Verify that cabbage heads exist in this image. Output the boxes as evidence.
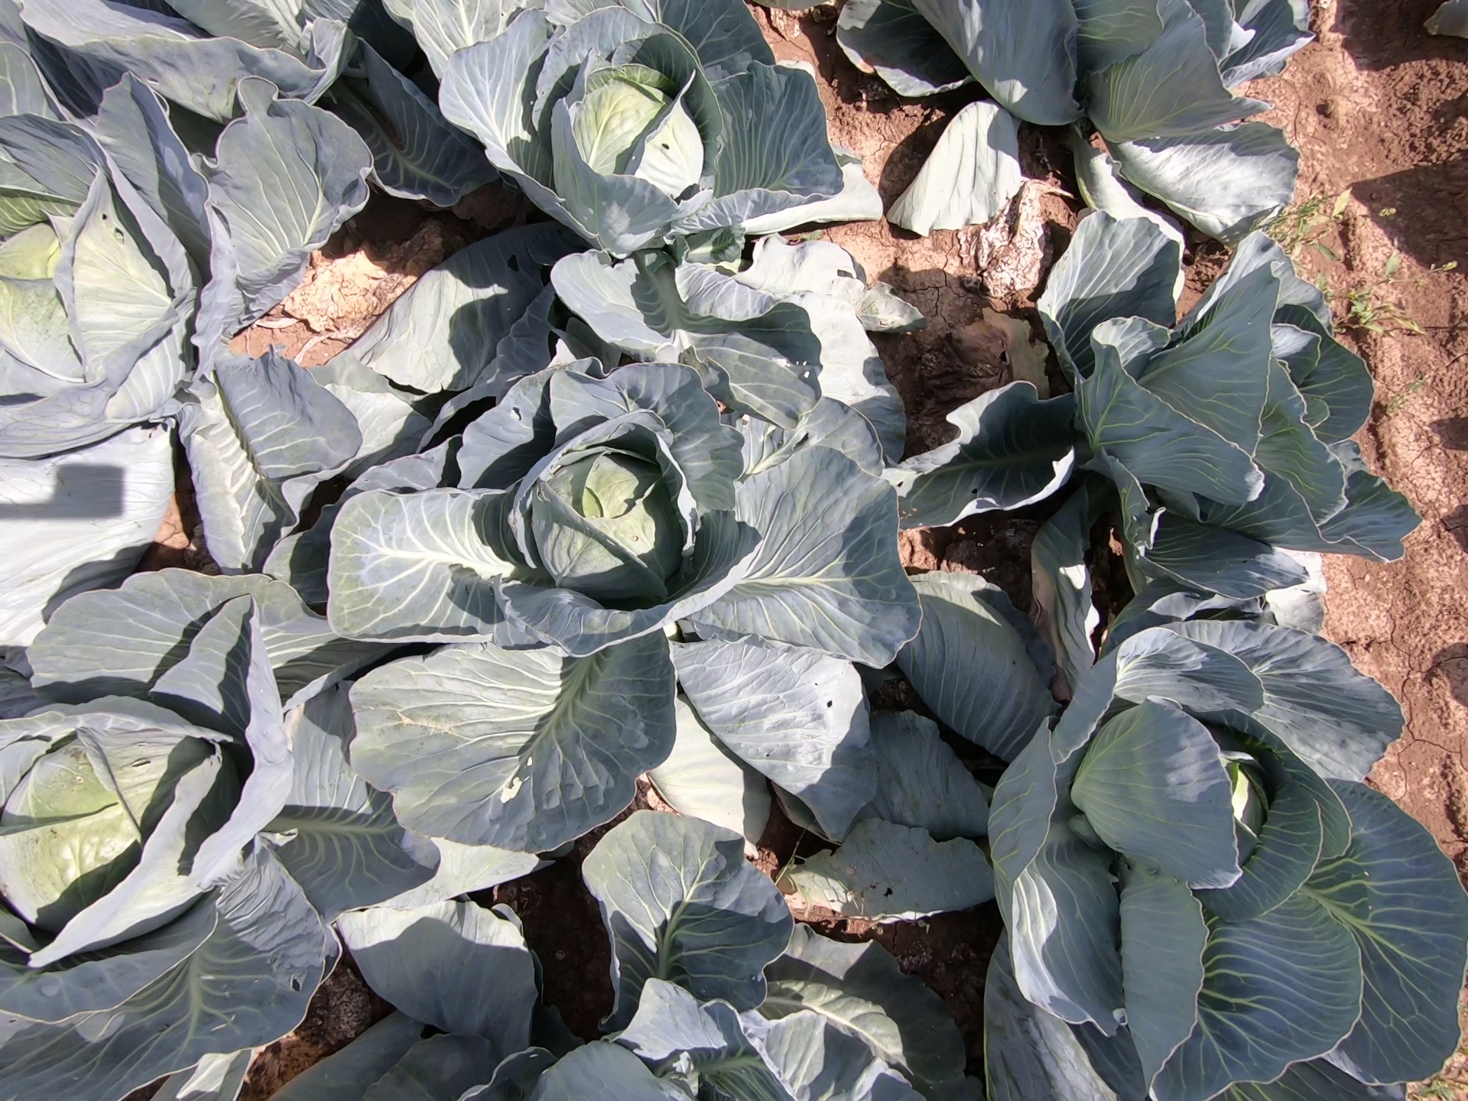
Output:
[0,214,180,388]
[534,454,686,598]
[1088,722,1275,878]
[2,730,228,934]
[550,75,702,219]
